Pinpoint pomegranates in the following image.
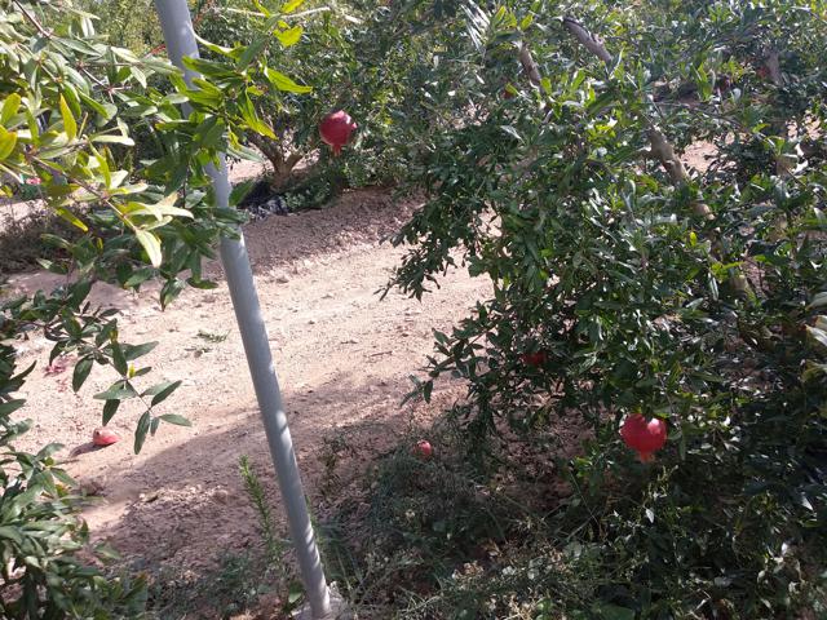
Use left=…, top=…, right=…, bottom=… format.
left=318, top=111, right=357, bottom=156
left=622, top=413, right=668, bottom=461
left=523, top=353, right=543, bottom=366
